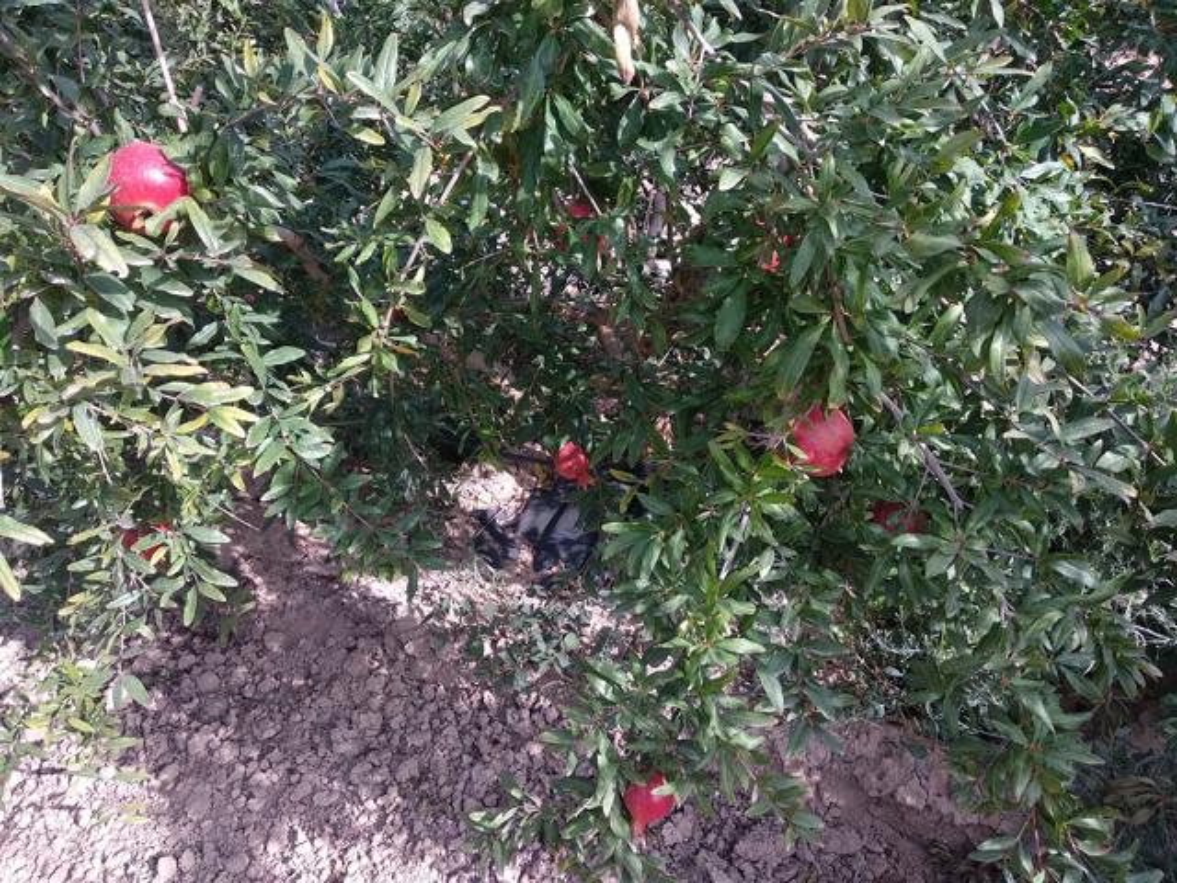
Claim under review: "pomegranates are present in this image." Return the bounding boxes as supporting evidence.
[623,771,675,835]
[109,140,189,234]
[552,440,590,487]
[793,405,855,478]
